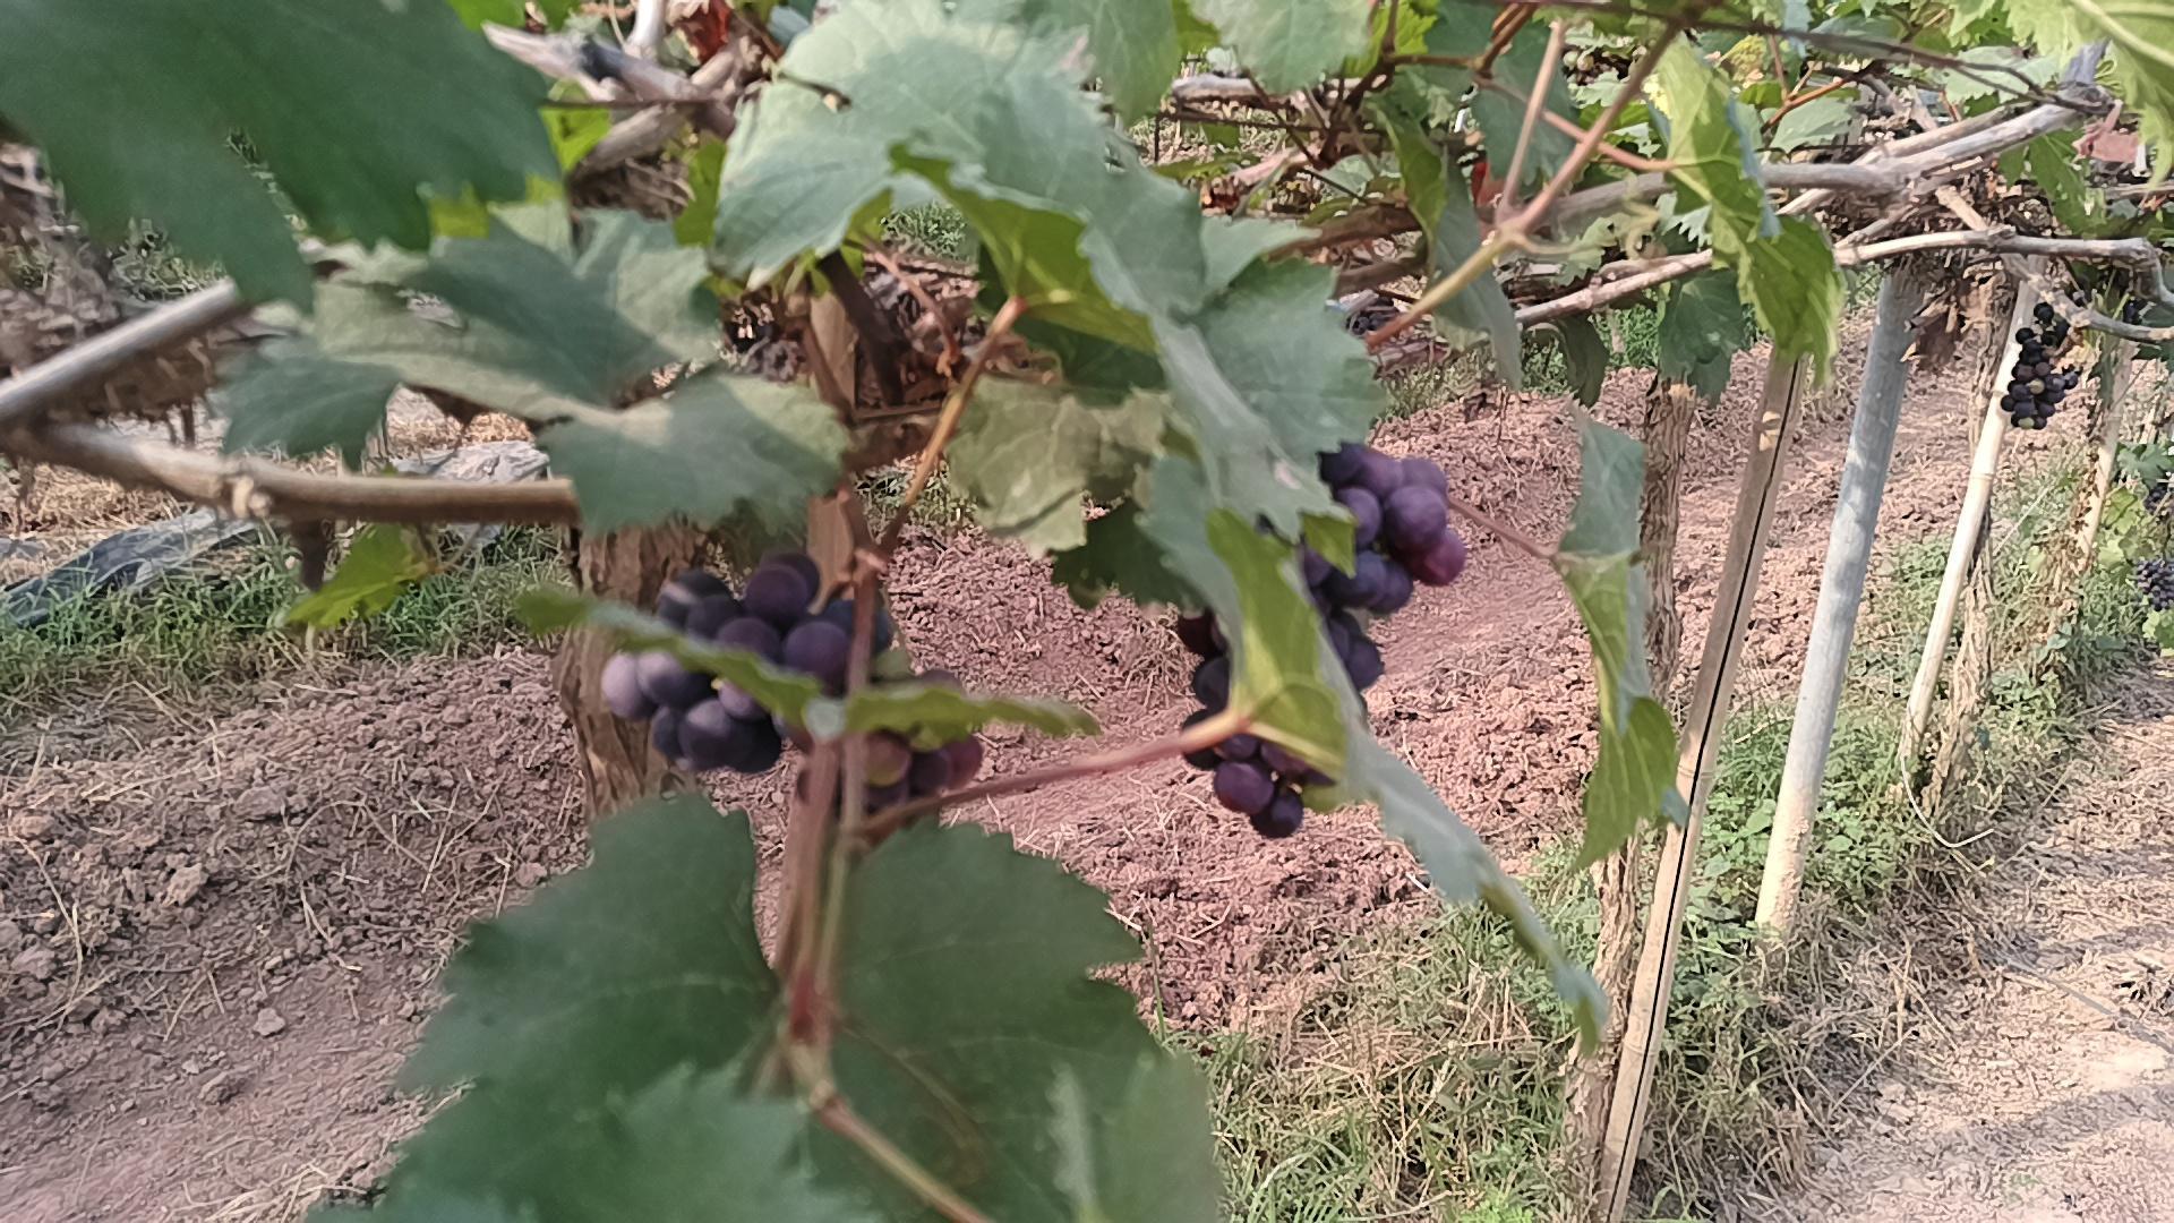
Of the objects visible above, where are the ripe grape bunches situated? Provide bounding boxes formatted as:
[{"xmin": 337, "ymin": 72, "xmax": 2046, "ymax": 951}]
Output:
[
  {"xmin": 2136, "ymin": 558, "xmax": 2173, "ymax": 613},
  {"xmin": 1299, "ymin": 441, "xmax": 1469, "ymax": 720},
  {"xmin": 2142, "ymin": 482, "xmax": 2173, "ymax": 525},
  {"xmin": 1182, "ymin": 729, "xmax": 1337, "ymax": 843},
  {"xmin": 1176, "ymin": 608, "xmax": 1232, "ymax": 733}
]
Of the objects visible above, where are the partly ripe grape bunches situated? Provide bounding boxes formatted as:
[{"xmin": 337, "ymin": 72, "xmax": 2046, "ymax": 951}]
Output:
[
  {"xmin": 599, "ymin": 544, "xmax": 985, "ymax": 818},
  {"xmin": 2001, "ymin": 301, "xmax": 2085, "ymax": 431}
]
